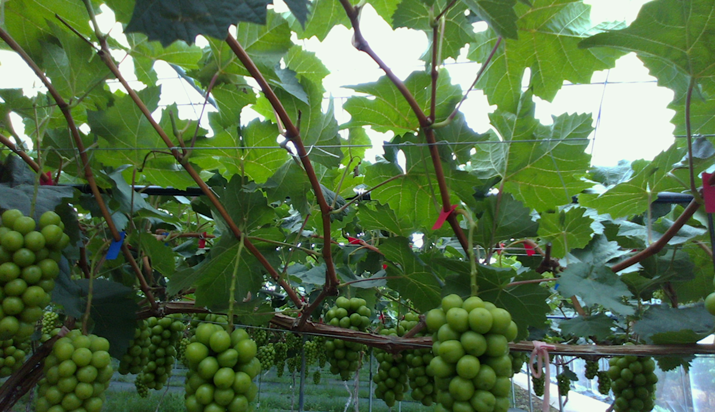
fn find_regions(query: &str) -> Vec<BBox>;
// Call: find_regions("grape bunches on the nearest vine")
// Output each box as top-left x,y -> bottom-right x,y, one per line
184,323 -> 261,411
1,209 -> 70,341
34,328 -> 113,411
425,294 -> 518,411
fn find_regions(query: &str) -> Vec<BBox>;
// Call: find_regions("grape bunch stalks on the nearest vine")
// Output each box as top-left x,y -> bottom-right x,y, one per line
226,233 -> 245,336
81,239 -> 112,336
455,209 -> 479,296
29,145 -> 54,217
